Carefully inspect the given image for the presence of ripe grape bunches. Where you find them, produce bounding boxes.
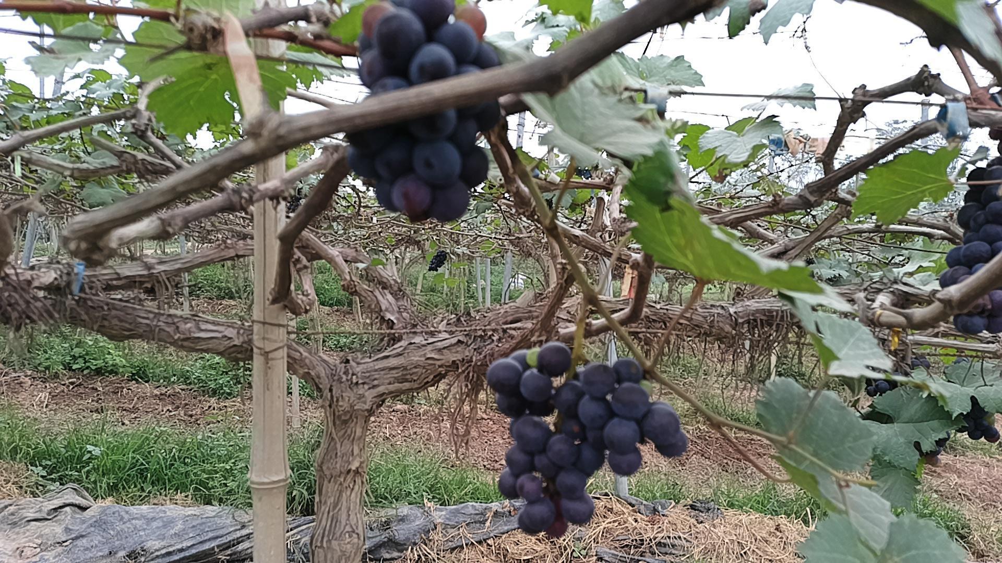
[914,431,951,467]
[954,278,1001,334]
[967,127,1001,182]
[428,250,448,272]
[346,99,501,222]
[485,342,690,537]
[285,186,304,219]
[940,181,1001,290]
[359,0,501,97]
[864,377,900,398]
[955,396,1000,444]
[953,357,970,365]
[904,354,931,370]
